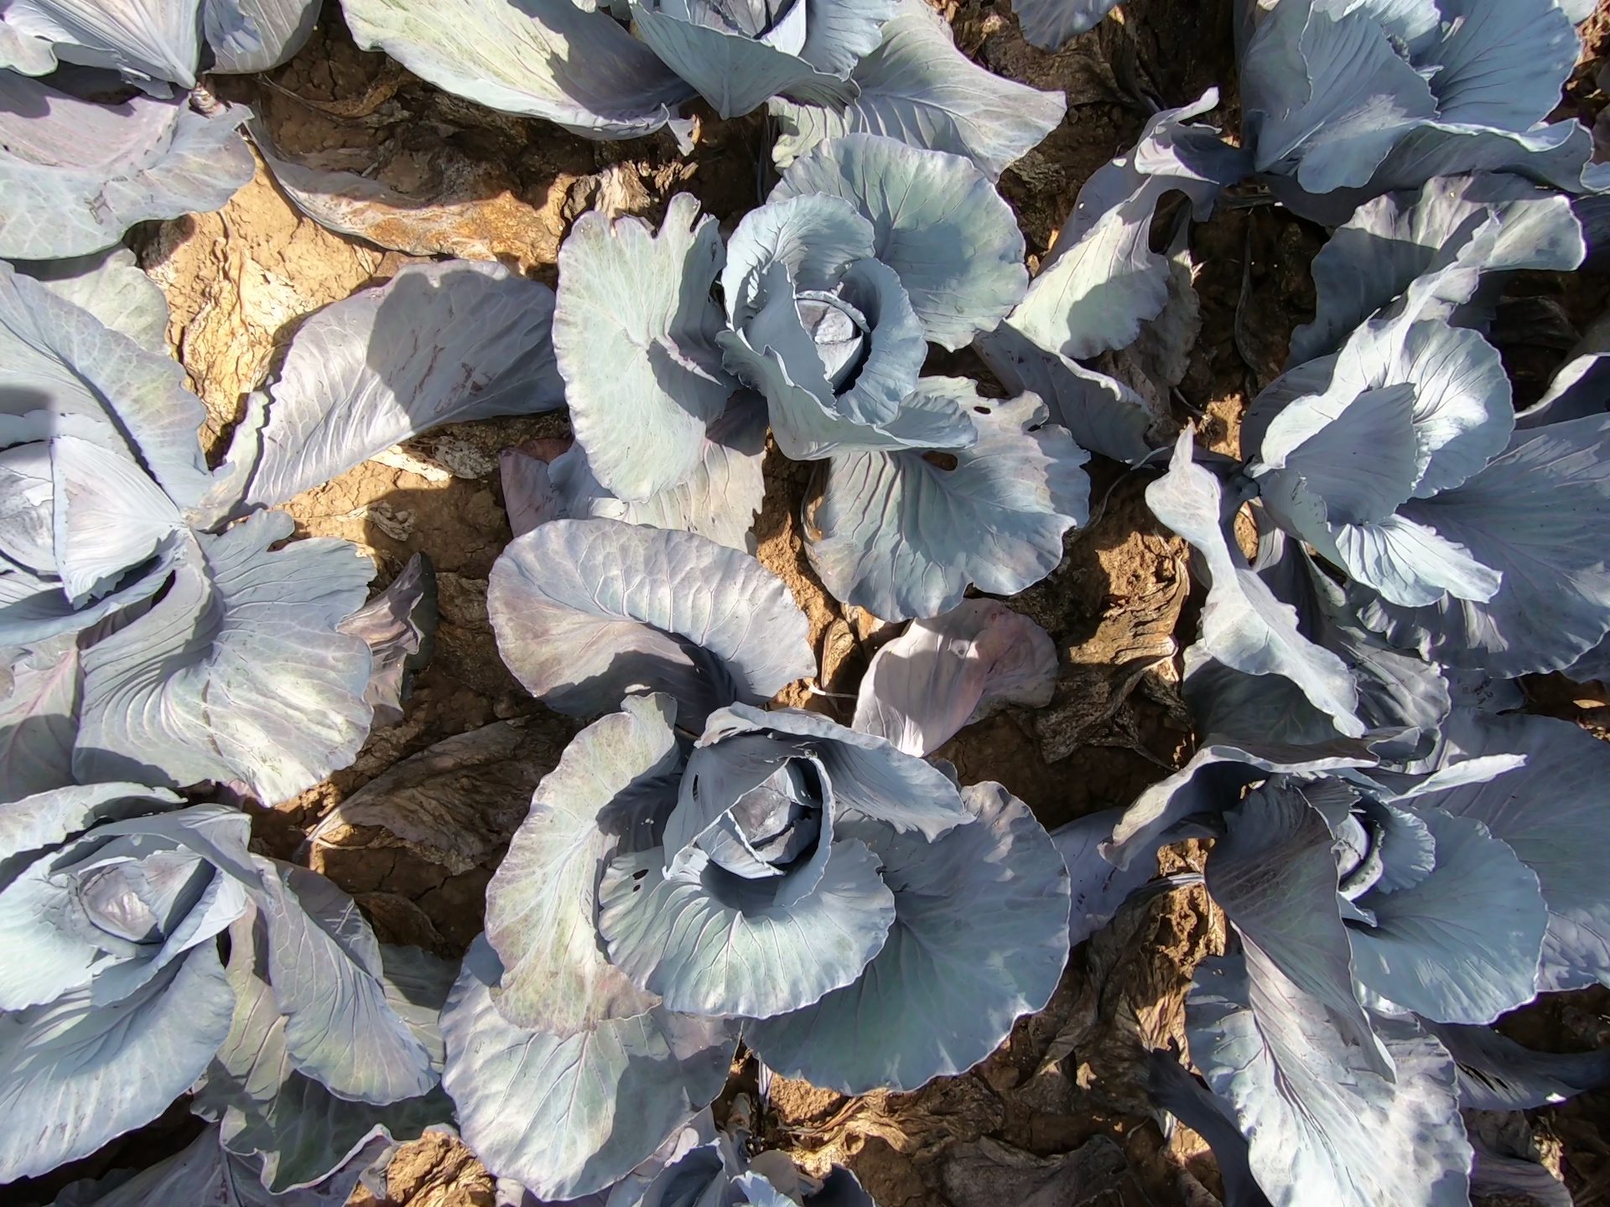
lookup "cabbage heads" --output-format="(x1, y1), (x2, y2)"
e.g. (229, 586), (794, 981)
(648, 0), (808, 82)
(759, 291), (865, 398)
(1274, 59), (1415, 194)
(76, 823), (226, 952)
(4, 435), (169, 570)
(1266, 795), (1379, 894)
(688, 748), (817, 880)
